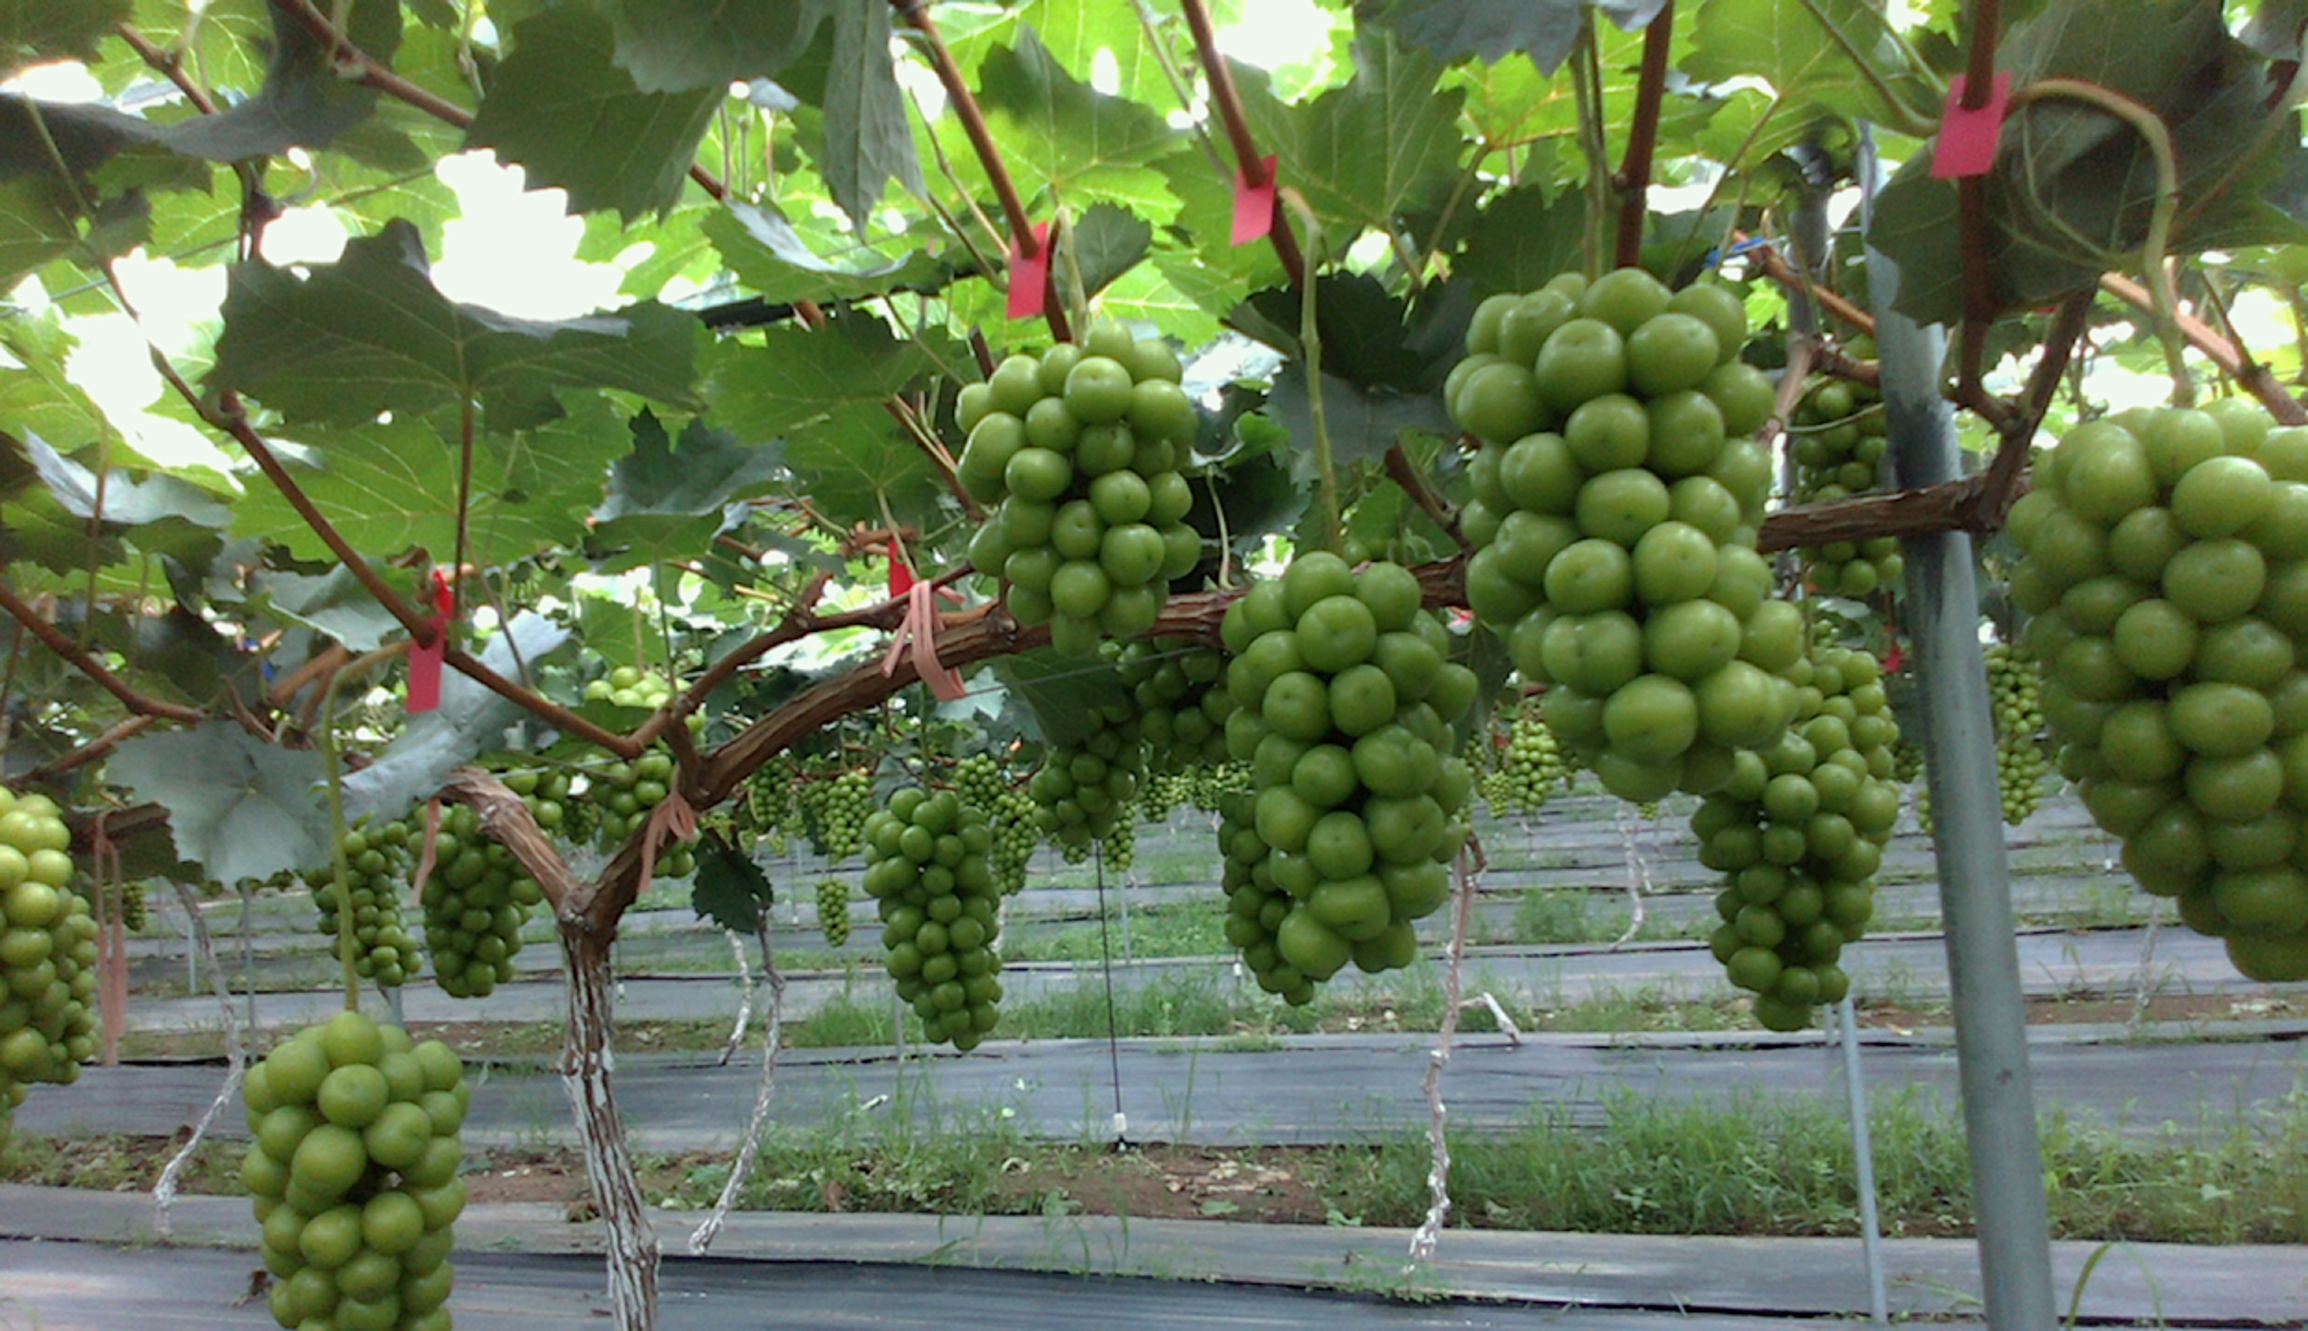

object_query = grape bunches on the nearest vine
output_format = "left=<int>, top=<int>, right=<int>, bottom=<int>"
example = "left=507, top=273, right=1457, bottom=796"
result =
left=1446, top=266, right=1807, bottom=804
left=2005, top=401, right=2306, bottom=983
left=1688, top=715, right=1901, bottom=1006
left=956, top=324, right=1202, bottom=658
left=1219, top=551, right=1476, bottom=980
left=0, top=786, right=76, bottom=1105
left=240, top=1011, right=468, bottom=1329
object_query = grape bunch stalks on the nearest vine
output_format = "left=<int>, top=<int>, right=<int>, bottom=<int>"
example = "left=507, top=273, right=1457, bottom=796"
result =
left=2003, top=79, right=2193, bottom=410
left=322, top=641, right=409, bottom=1013
left=1276, top=187, right=1343, bottom=551
left=1572, top=30, right=1605, bottom=290
left=1045, top=207, right=1084, bottom=349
